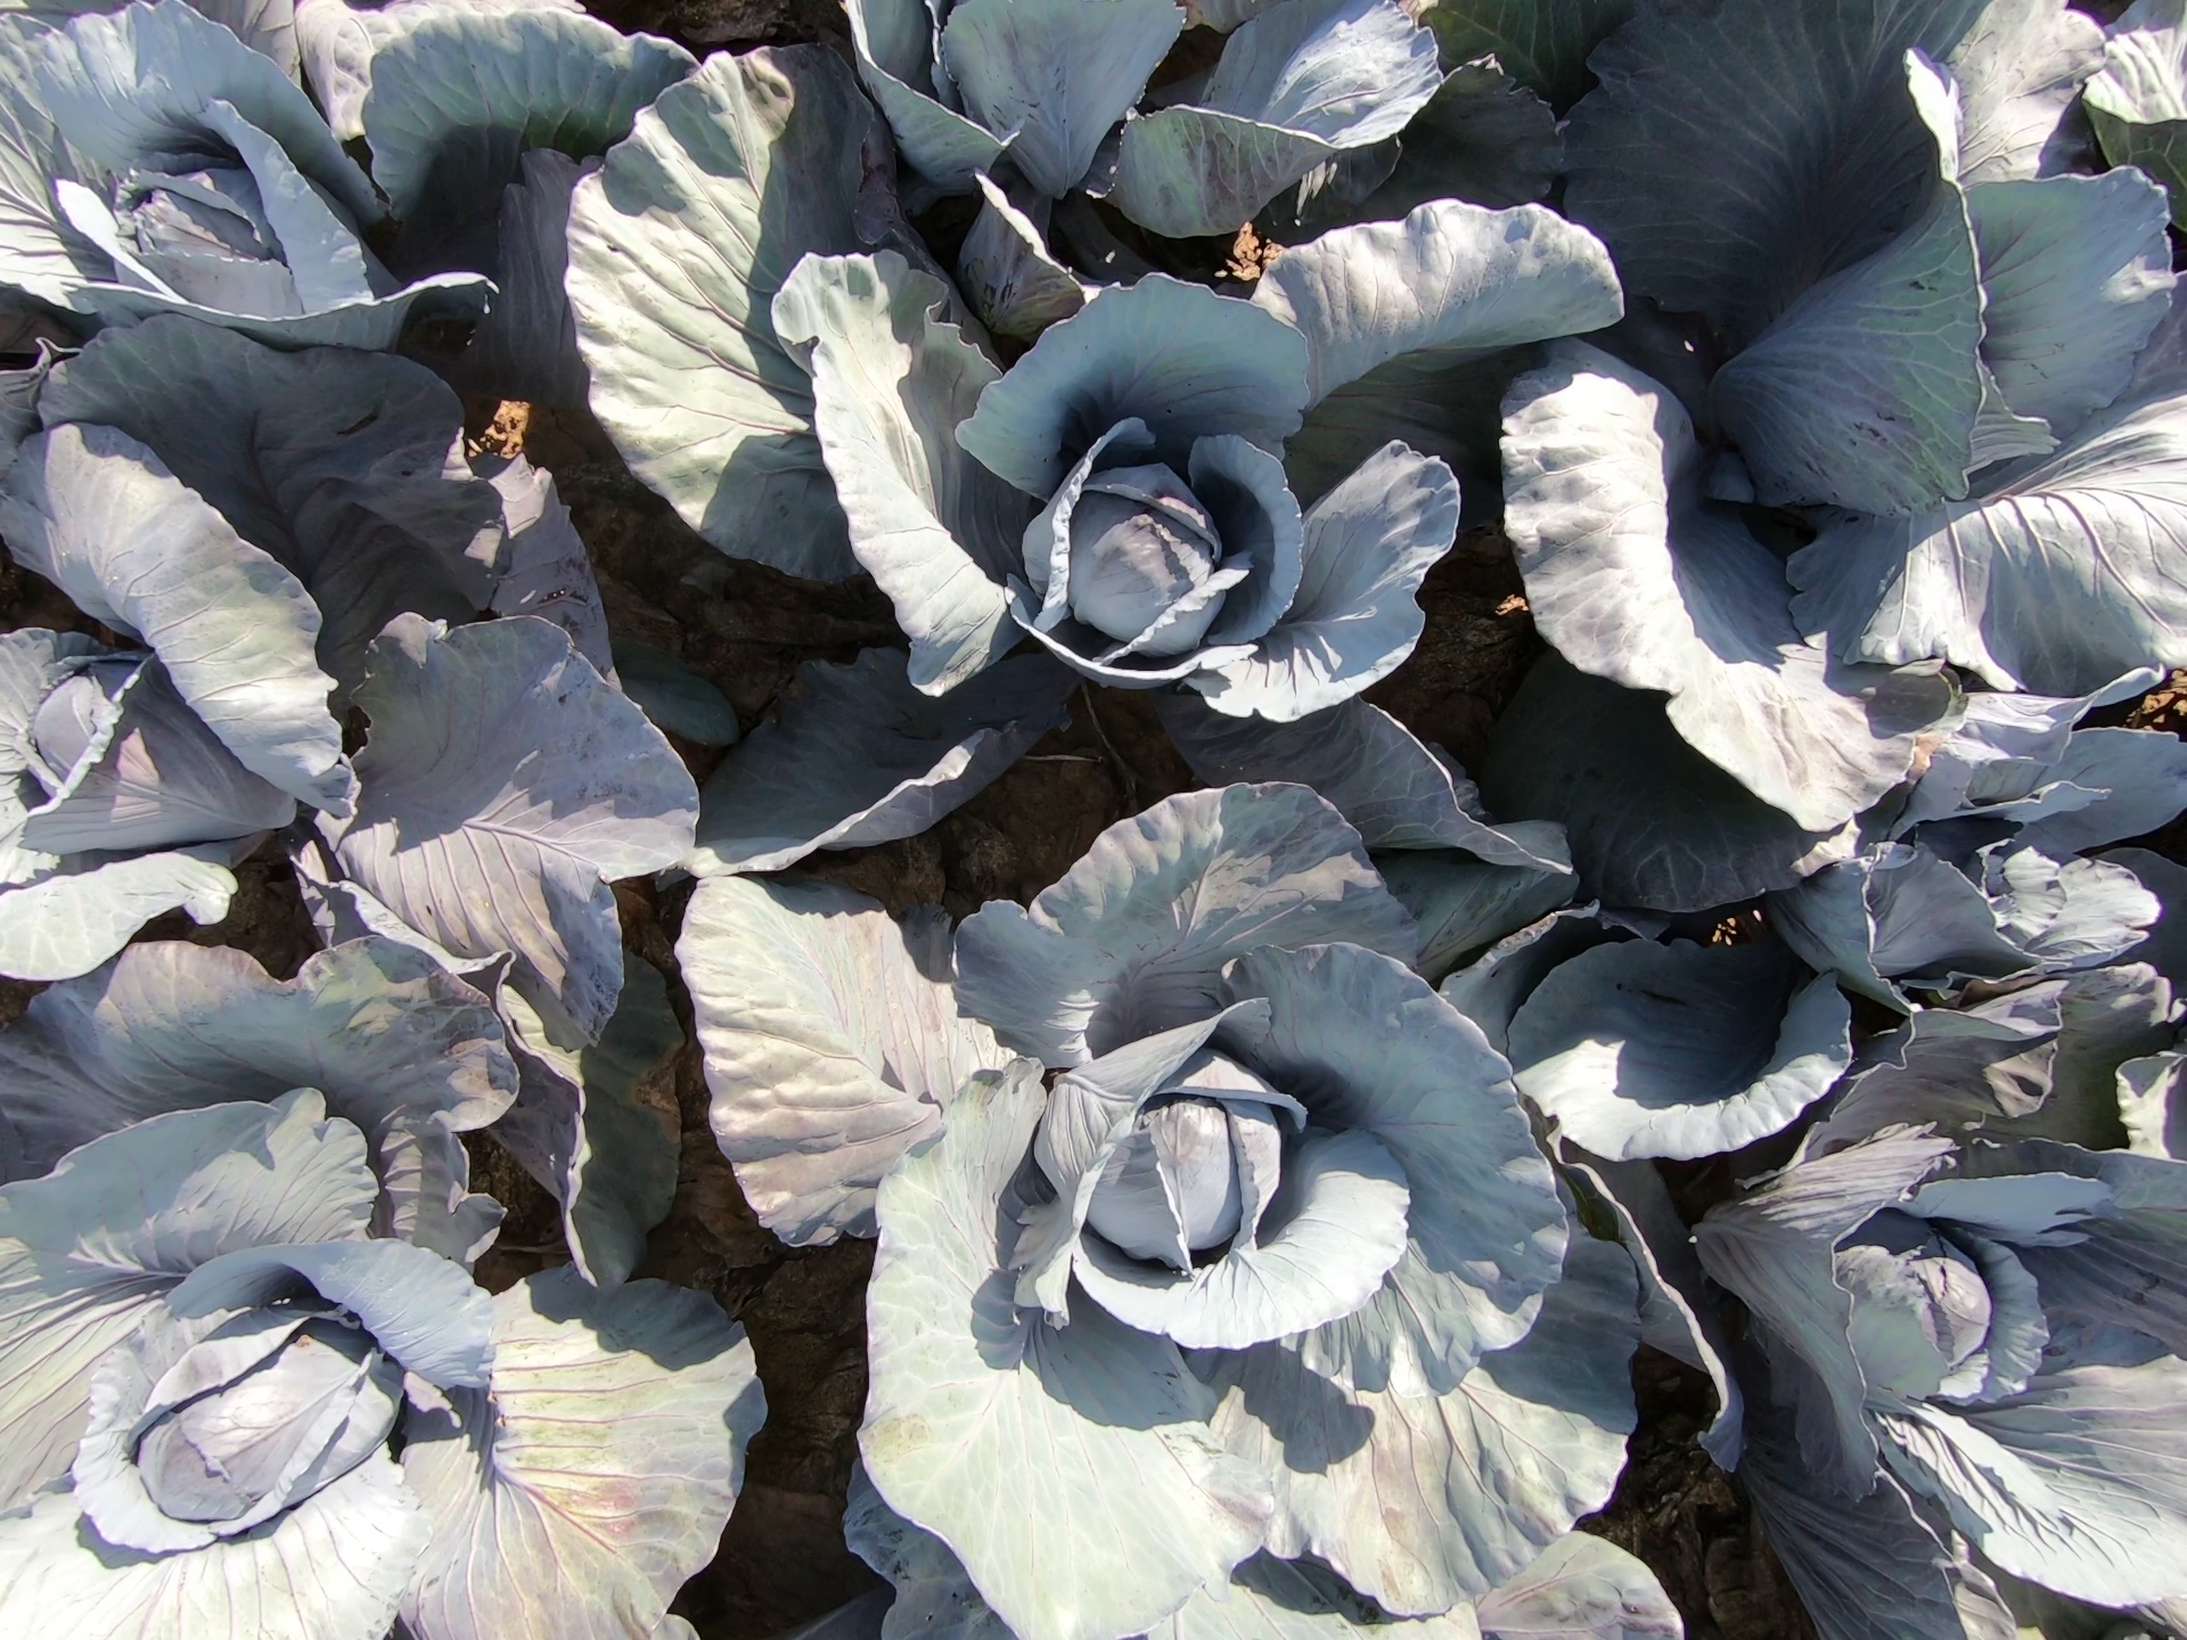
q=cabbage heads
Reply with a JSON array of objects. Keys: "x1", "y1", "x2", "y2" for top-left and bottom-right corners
[
  {"x1": 1051, "y1": 468, "x2": 1217, "y2": 640},
  {"x1": 1792, "y1": 1225, "x2": 1990, "y2": 1388},
  {"x1": 134, "y1": 164, "x2": 347, "y2": 323},
  {"x1": 137, "y1": 1302, "x2": 407, "y2": 1524},
  {"x1": 31, "y1": 654, "x2": 241, "y2": 821},
  {"x1": 1082, "y1": 1052, "x2": 1285, "y2": 1252}
]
